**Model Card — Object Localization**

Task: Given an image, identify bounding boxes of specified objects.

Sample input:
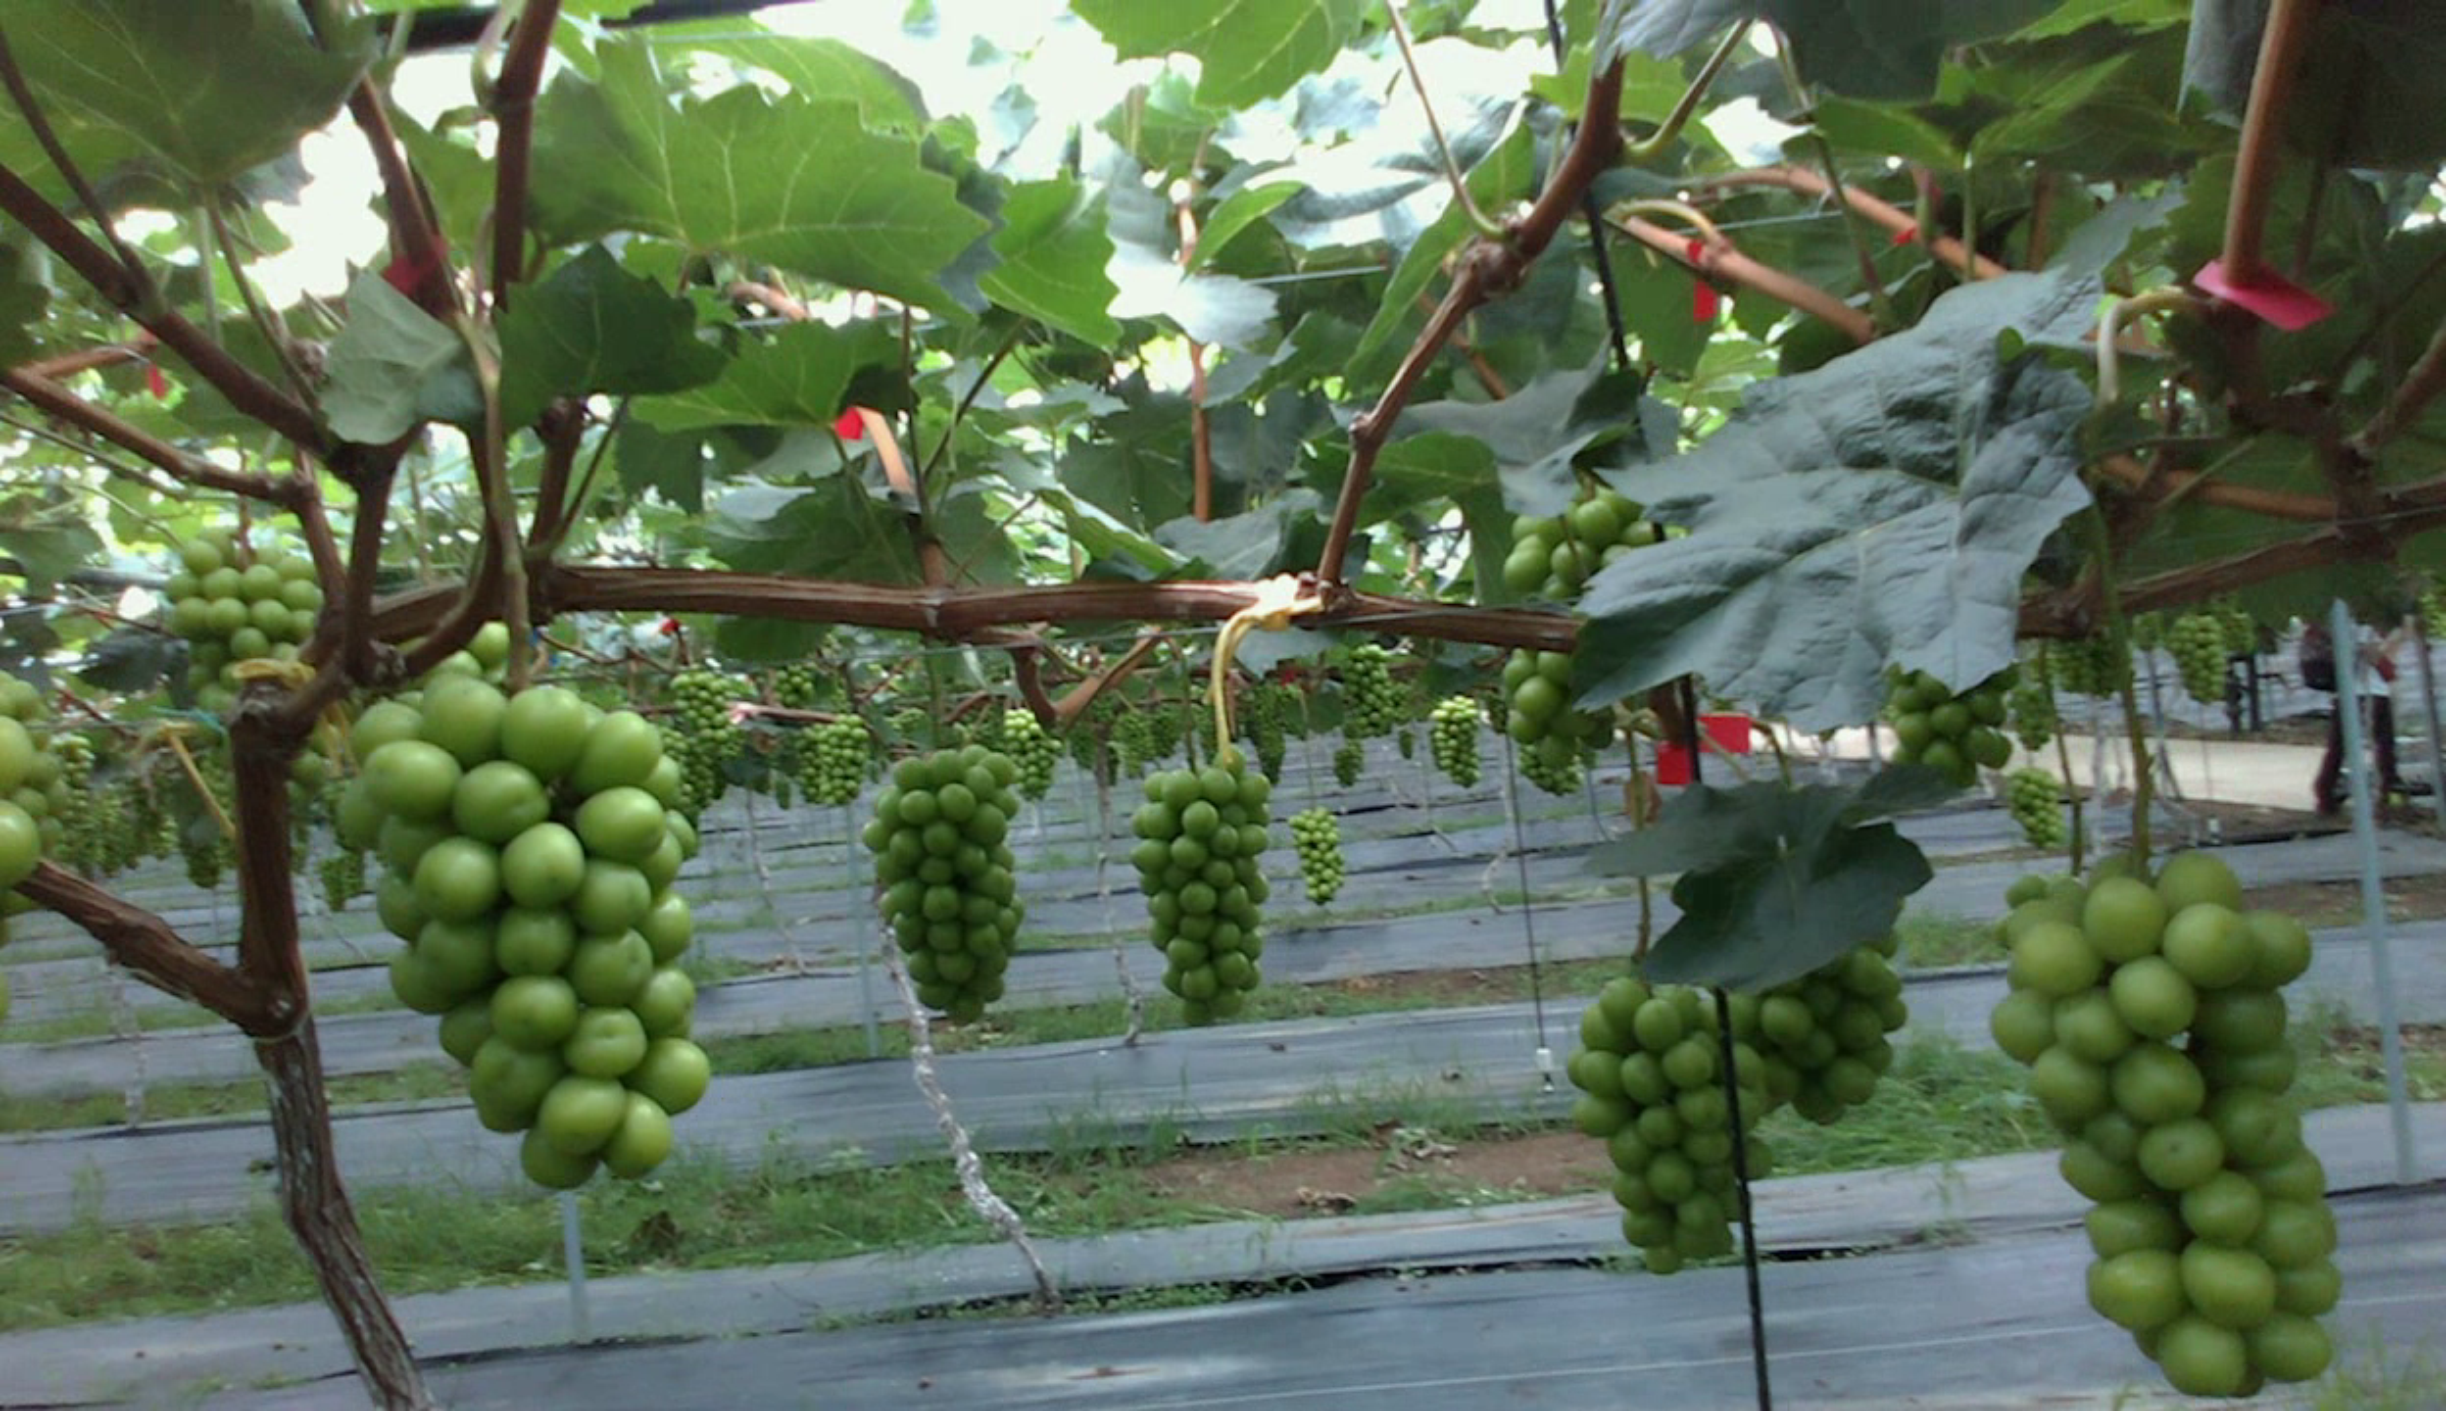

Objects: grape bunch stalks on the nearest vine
[2085,508,2150,874]
[441,312,529,696]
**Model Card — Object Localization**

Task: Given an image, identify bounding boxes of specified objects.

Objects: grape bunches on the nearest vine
[1993,849,2340,1401]
[337,672,709,1193]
